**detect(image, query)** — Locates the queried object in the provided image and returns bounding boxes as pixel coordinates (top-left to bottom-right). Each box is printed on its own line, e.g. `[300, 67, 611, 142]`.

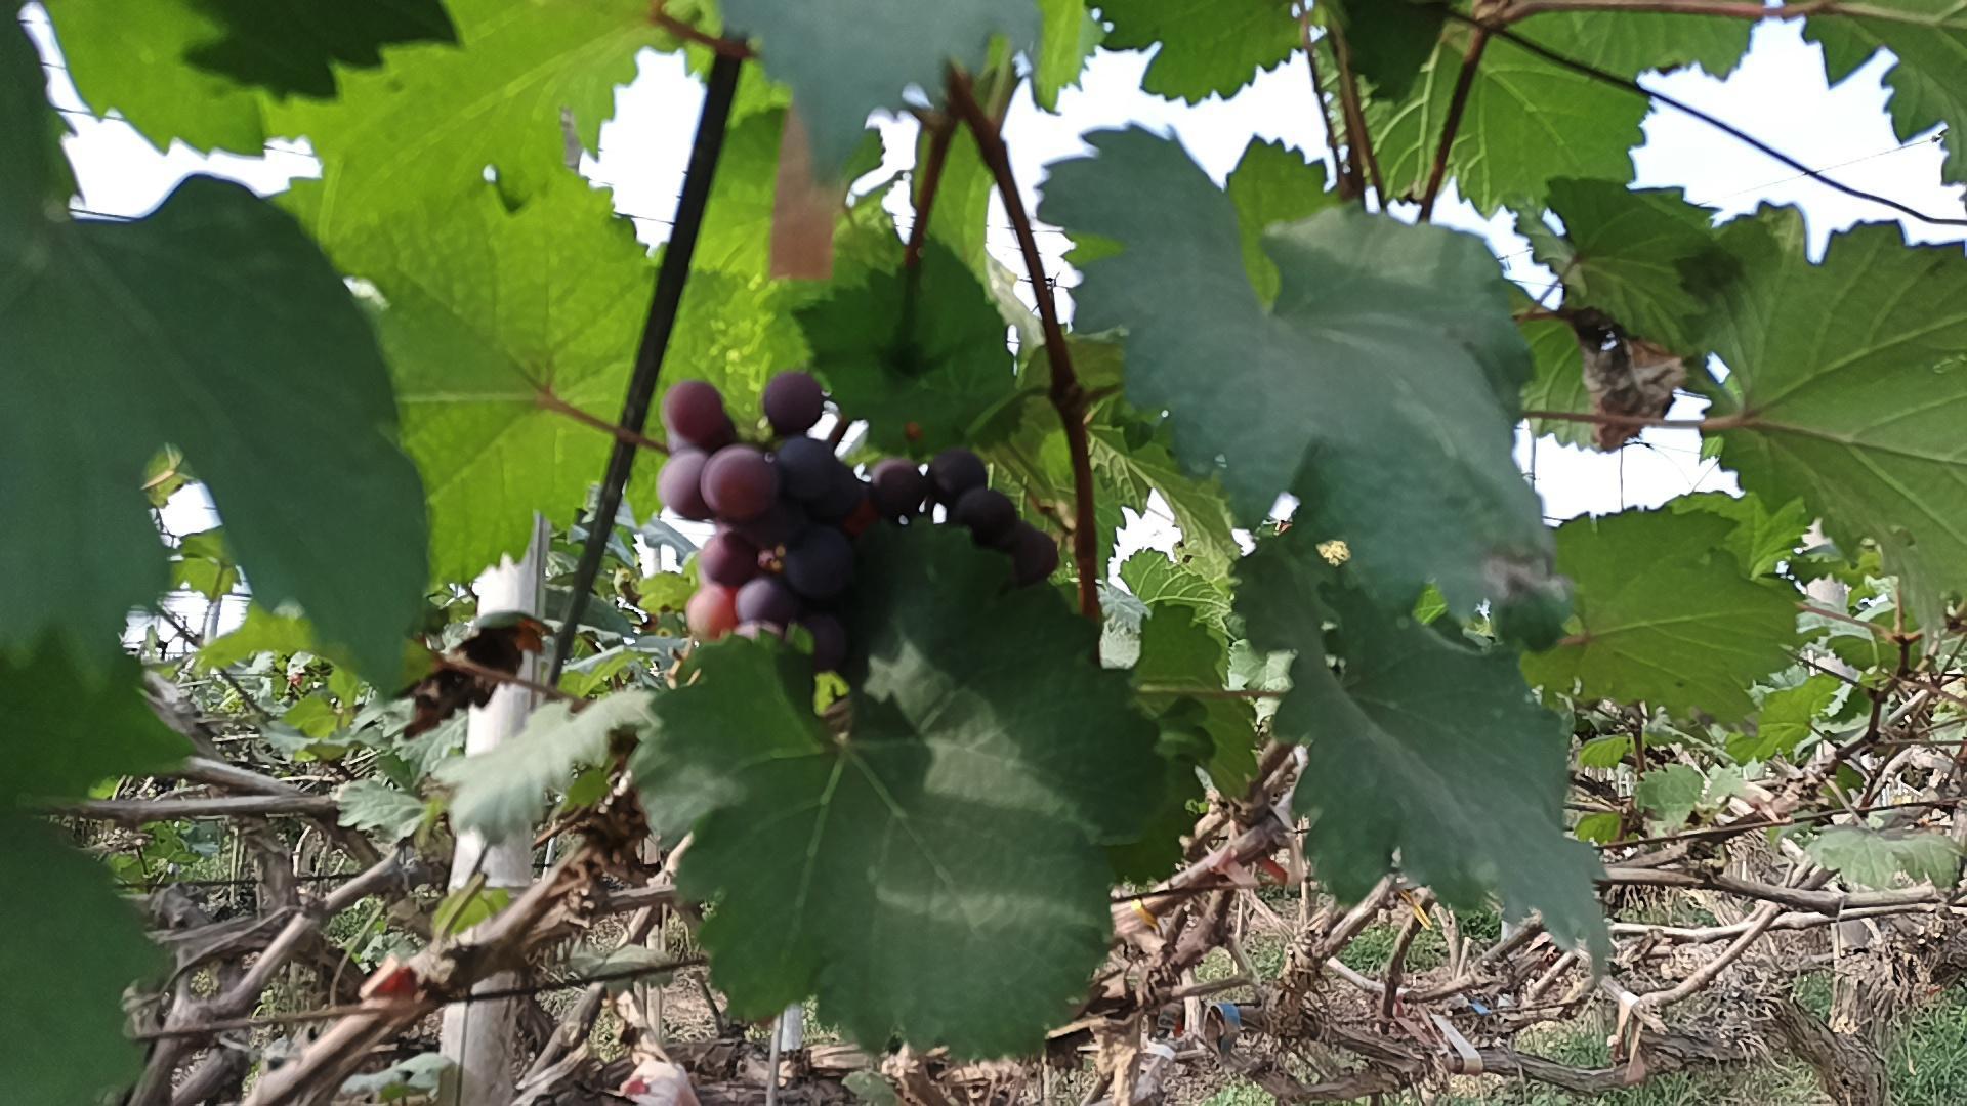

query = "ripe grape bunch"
[659, 372, 1059, 673]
